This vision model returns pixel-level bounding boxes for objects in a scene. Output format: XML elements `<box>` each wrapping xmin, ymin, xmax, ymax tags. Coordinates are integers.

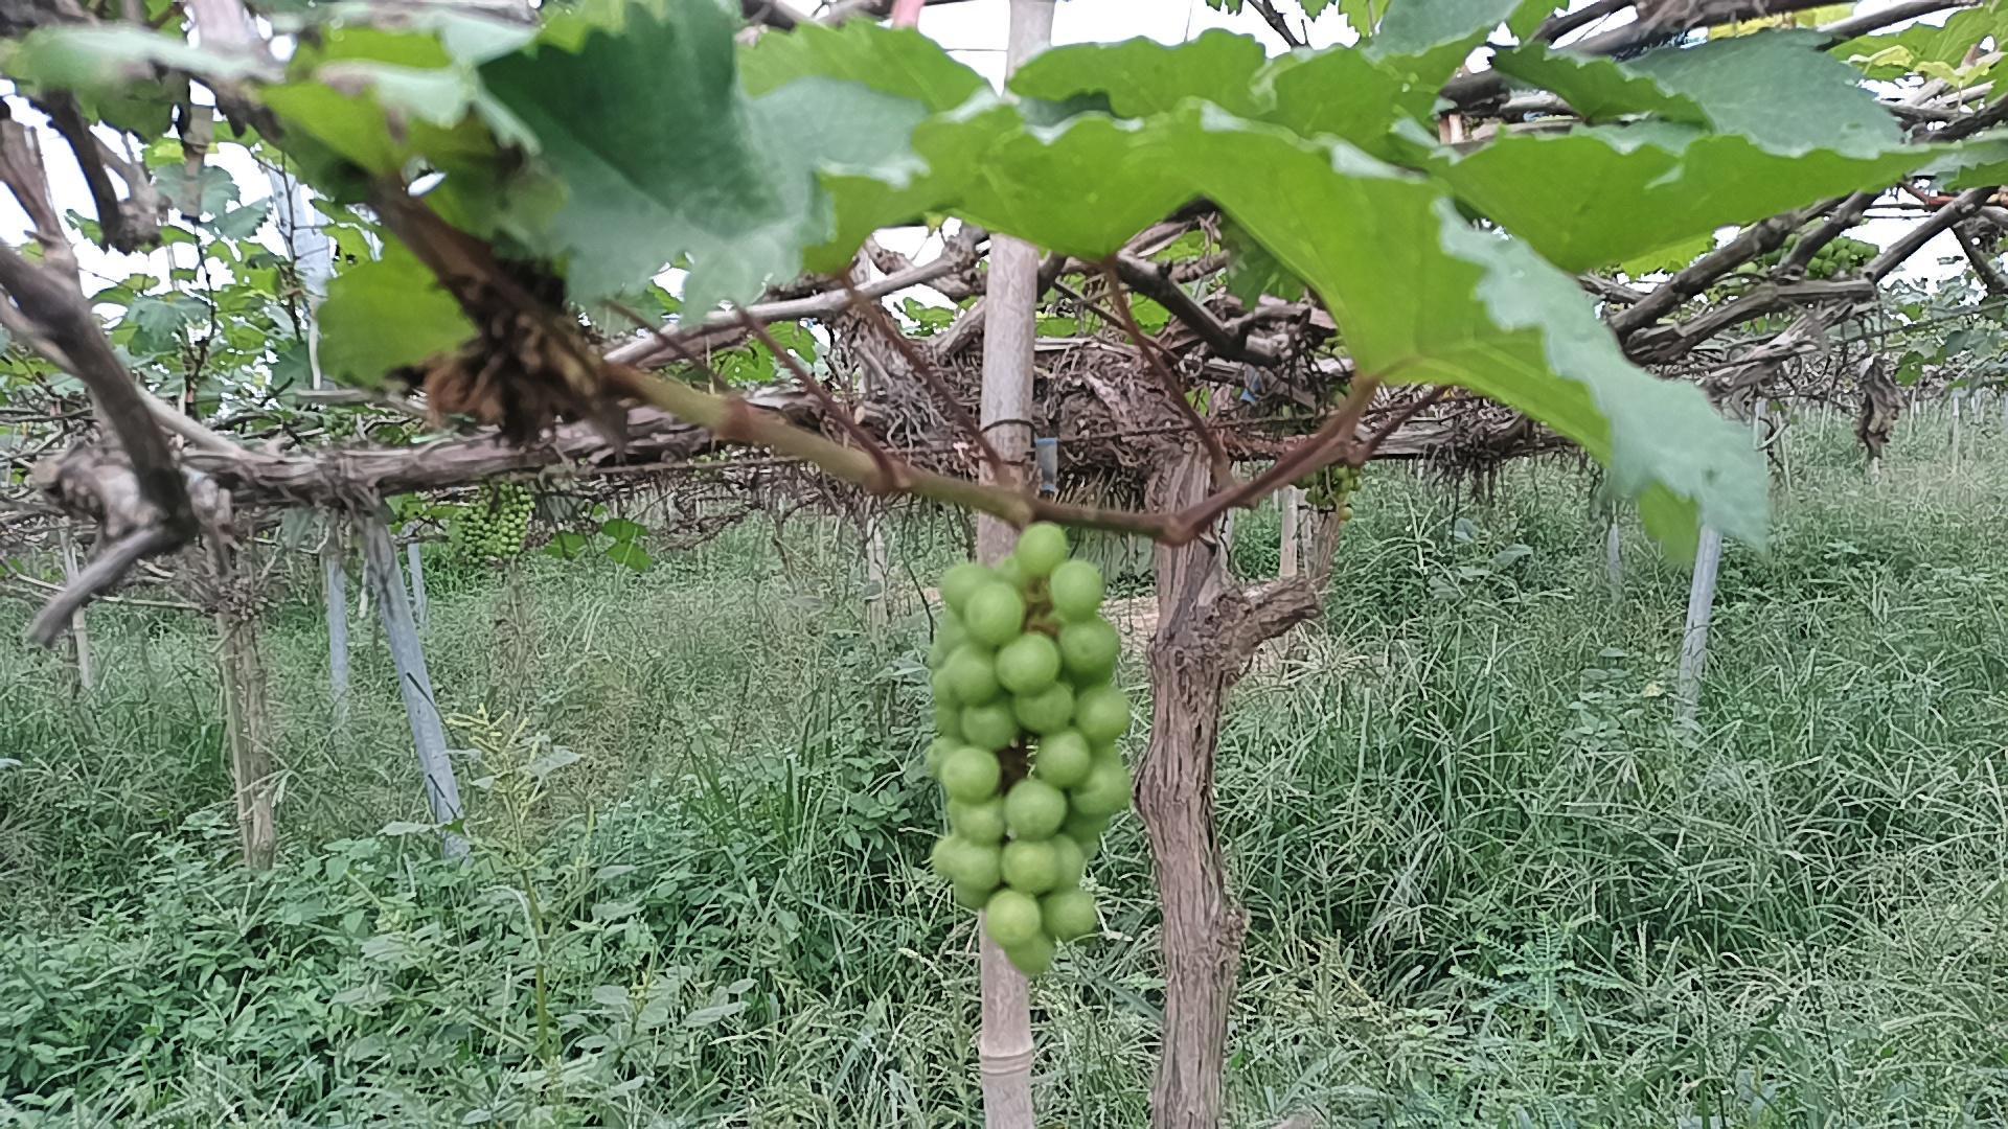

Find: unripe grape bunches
<box><xmin>929</xmin><ymin>525</ymin><xmax>1129</xmax><ymax>975</ymax></box>
<box><xmin>1722</xmin><ymin>234</ymin><xmax>1878</xmax><ymax>292</ymax></box>
<box><xmin>454</xmin><ymin>483</ymin><xmax>498</xmax><ymax>562</ymax></box>
<box><xmin>496</xmin><ymin>482</ymin><xmax>535</xmax><ymax>561</ymax></box>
